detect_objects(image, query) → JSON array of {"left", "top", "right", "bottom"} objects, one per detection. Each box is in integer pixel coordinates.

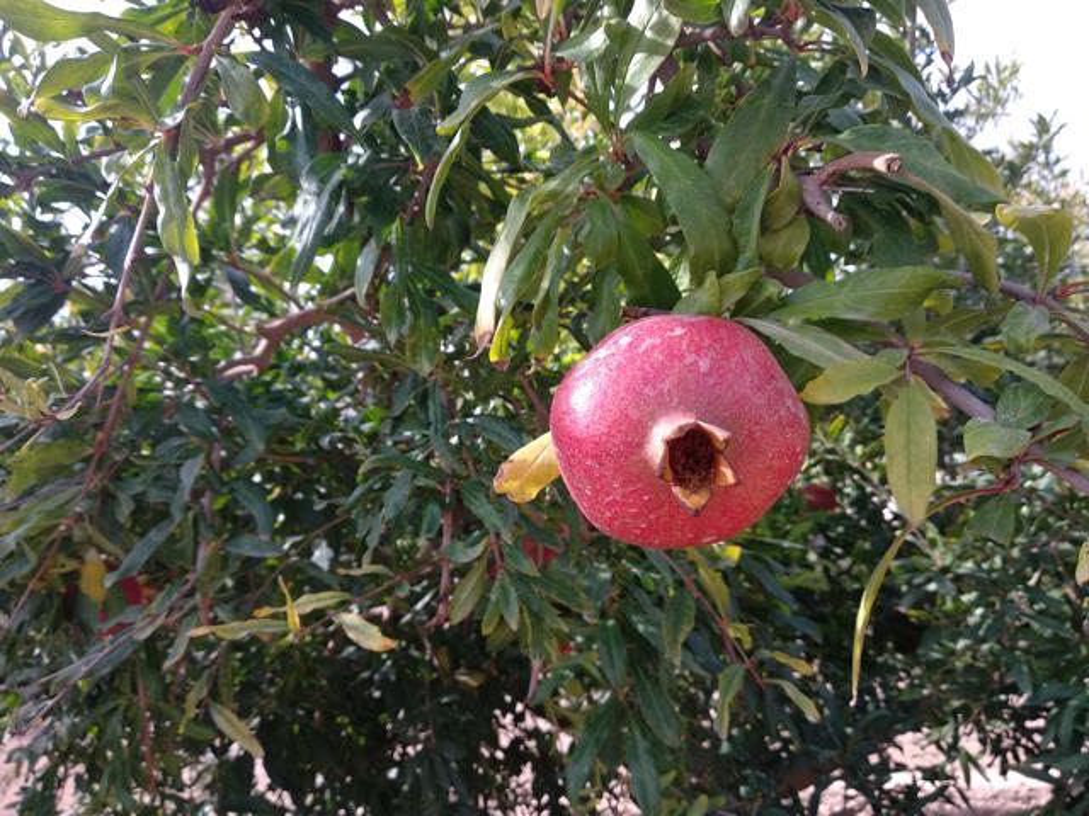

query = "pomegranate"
[{"left": 548, "top": 313, "right": 812, "bottom": 549}]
